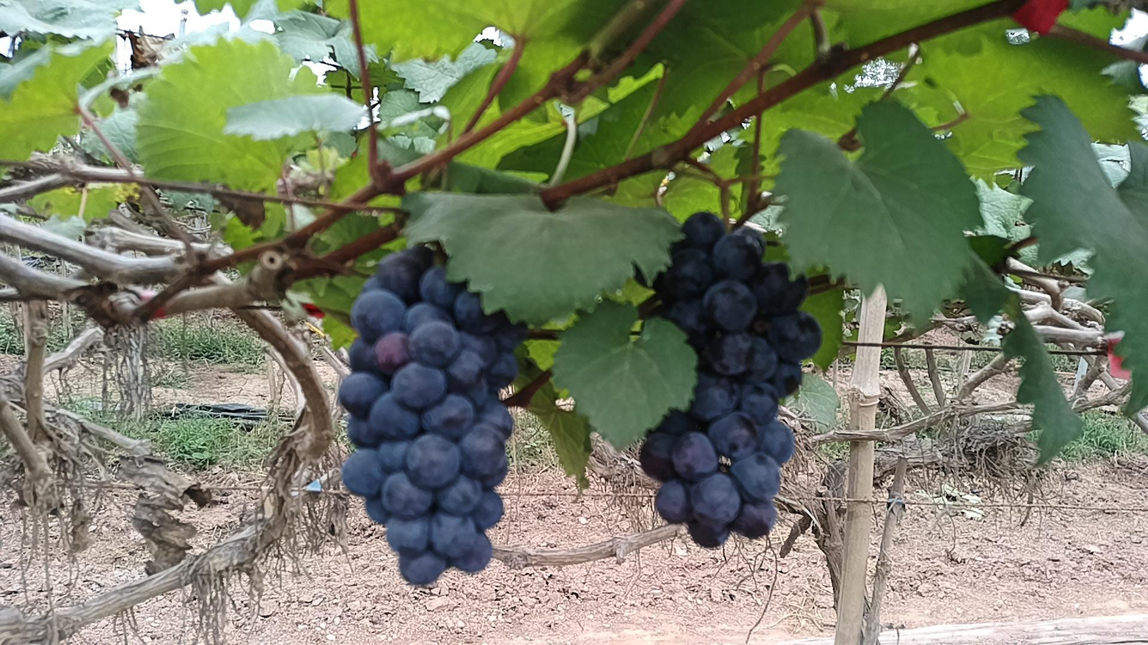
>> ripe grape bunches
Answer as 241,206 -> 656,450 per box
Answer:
640,212 -> 822,547
340,245 -> 526,585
